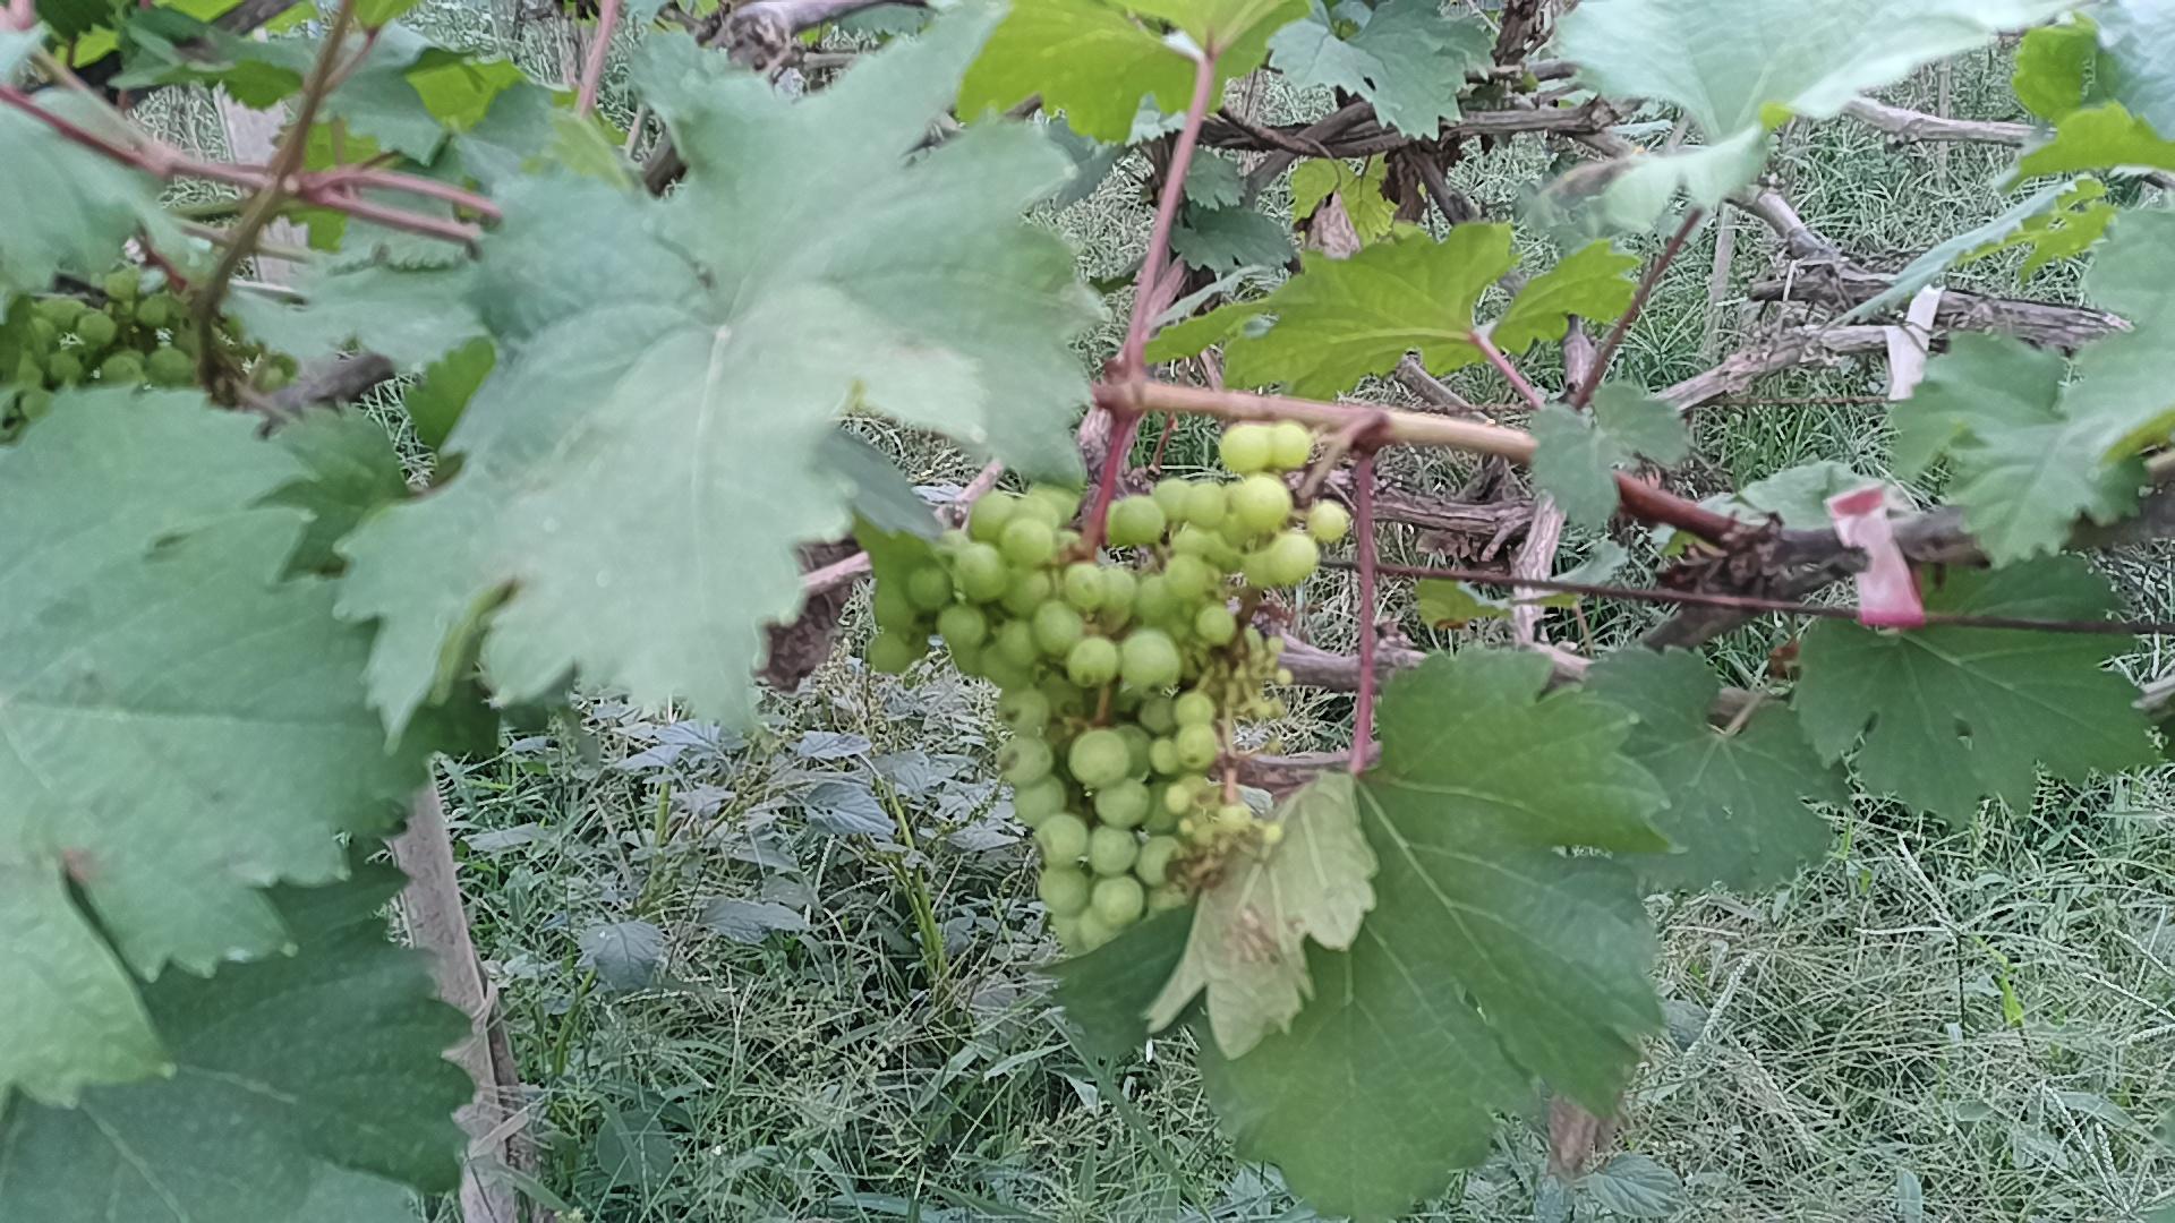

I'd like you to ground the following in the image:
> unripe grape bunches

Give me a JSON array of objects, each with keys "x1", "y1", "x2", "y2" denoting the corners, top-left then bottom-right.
[
  {"x1": 873, "y1": 422, "x2": 1351, "y2": 949},
  {"x1": 0, "y1": 266, "x2": 195, "y2": 441}
]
